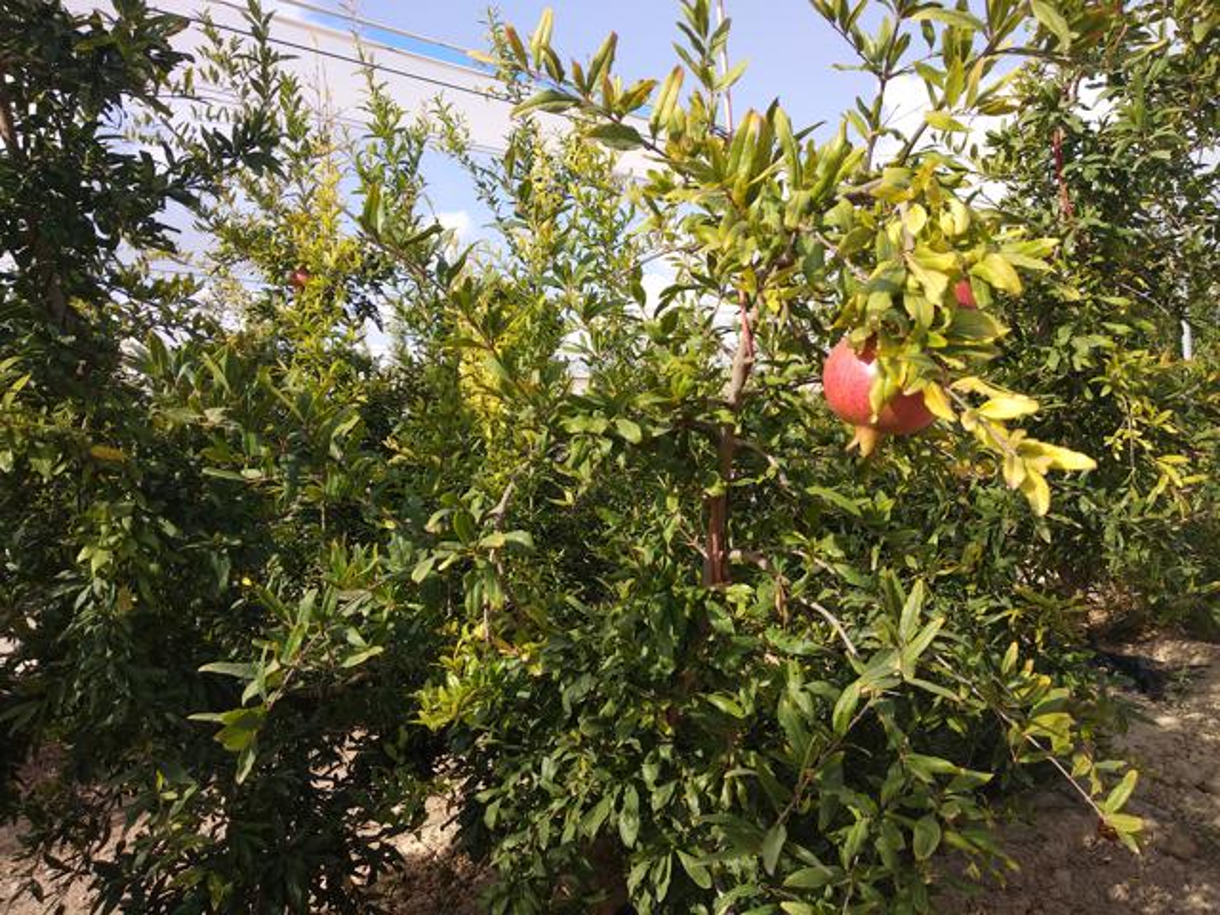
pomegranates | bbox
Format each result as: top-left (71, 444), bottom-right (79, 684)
top-left (953, 278), bottom-right (976, 305)
top-left (822, 335), bottom-right (940, 457)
